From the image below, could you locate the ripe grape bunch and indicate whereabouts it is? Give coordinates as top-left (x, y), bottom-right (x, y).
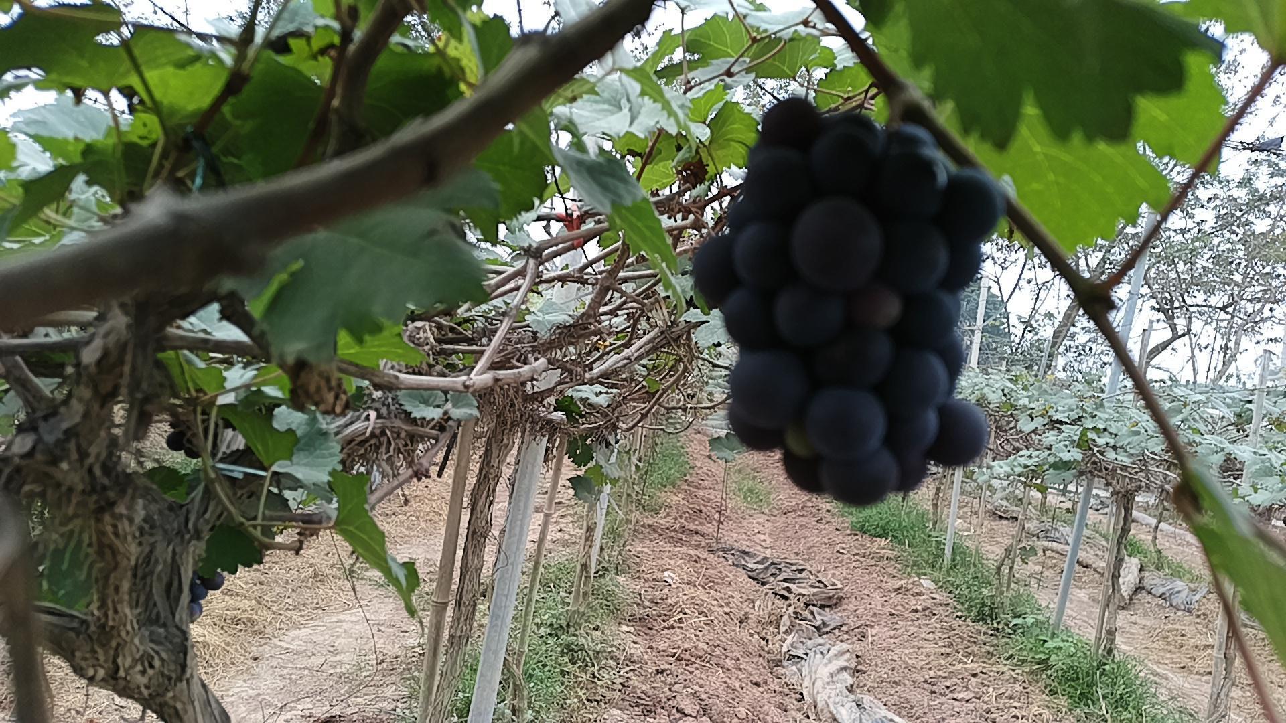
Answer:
top-left (693, 98), bottom-right (1005, 504)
